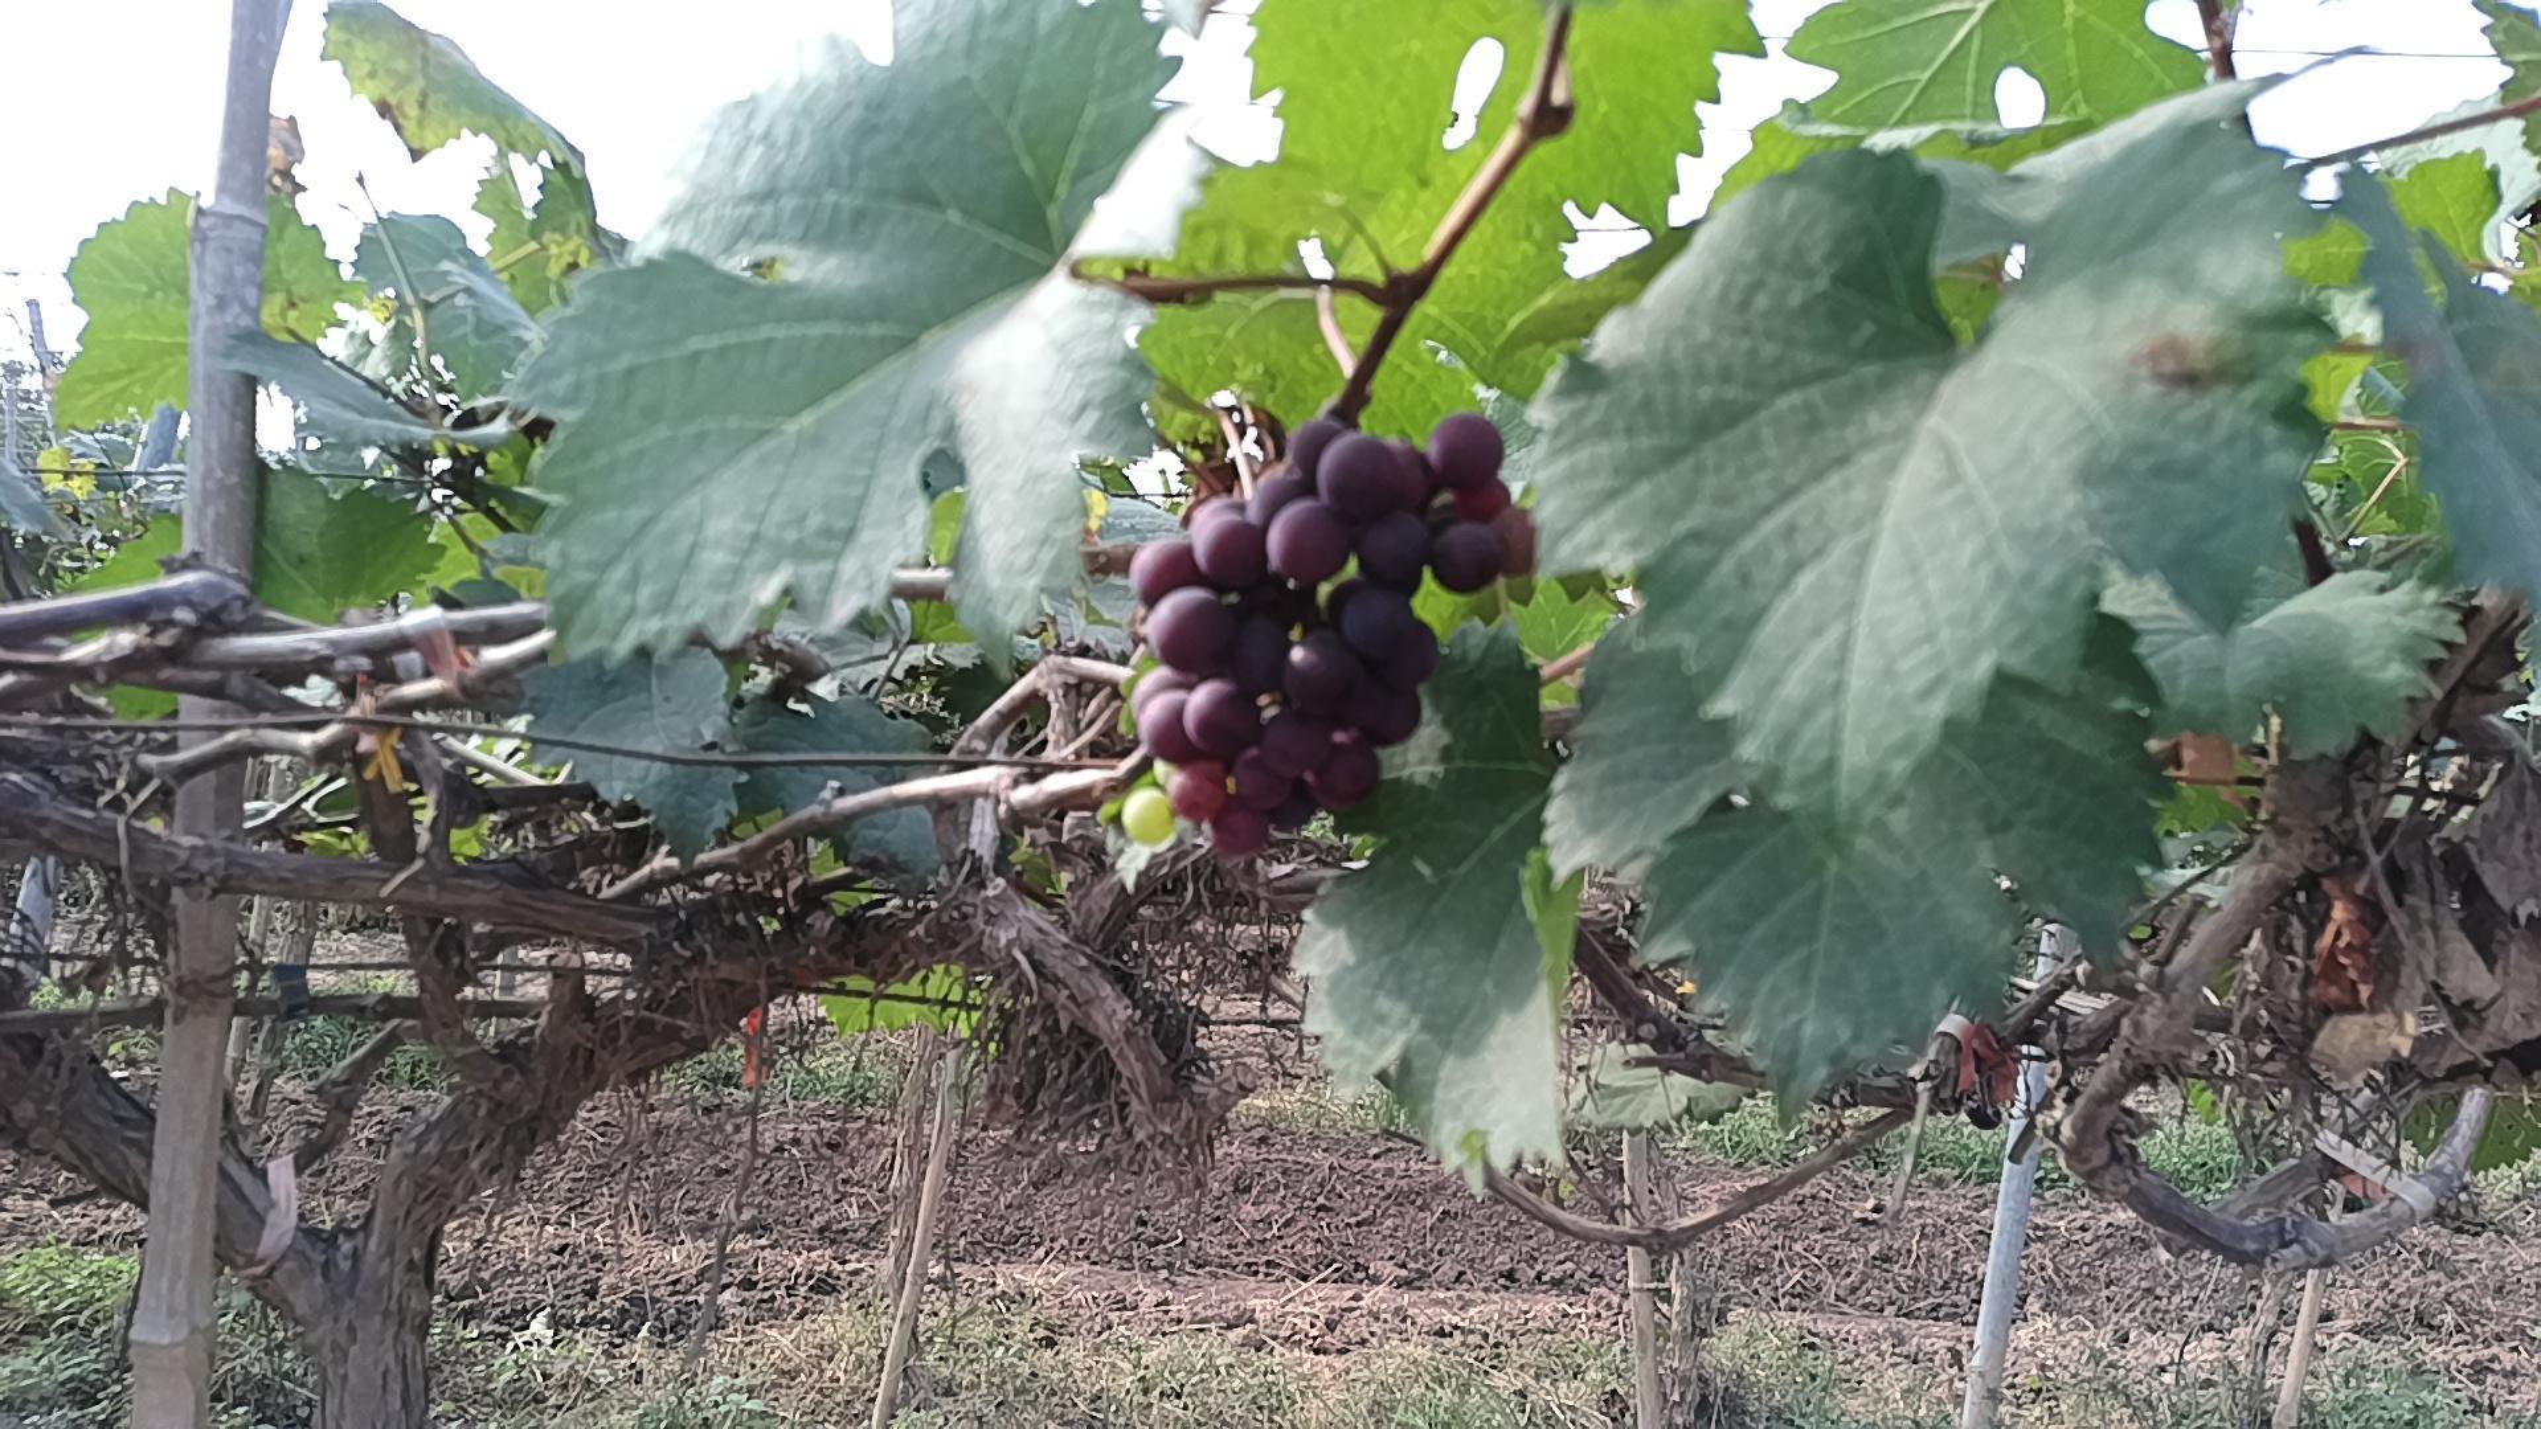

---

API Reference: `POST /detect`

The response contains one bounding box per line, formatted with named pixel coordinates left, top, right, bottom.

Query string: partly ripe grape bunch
left=1121, top=414, right=1533, bottom=857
